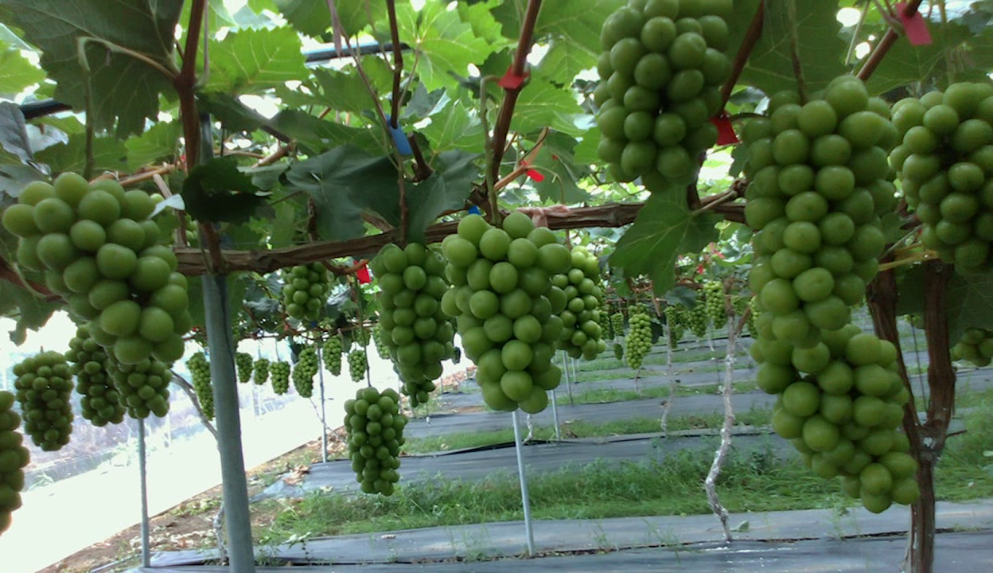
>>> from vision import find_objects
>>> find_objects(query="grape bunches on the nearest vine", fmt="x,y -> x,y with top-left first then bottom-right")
373,243 -> 454,386
742,76 -> 898,350
747,324 -> 921,514
889,81 -> 992,278
2,172 -> 192,366
594,0 -> 737,194
441,212 -> 572,415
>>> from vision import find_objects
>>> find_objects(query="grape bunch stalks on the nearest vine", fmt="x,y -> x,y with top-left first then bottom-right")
396,154 -> 407,249
75,37 -> 173,180
788,2 -> 808,104
479,76 -> 500,226
937,0 -> 954,84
